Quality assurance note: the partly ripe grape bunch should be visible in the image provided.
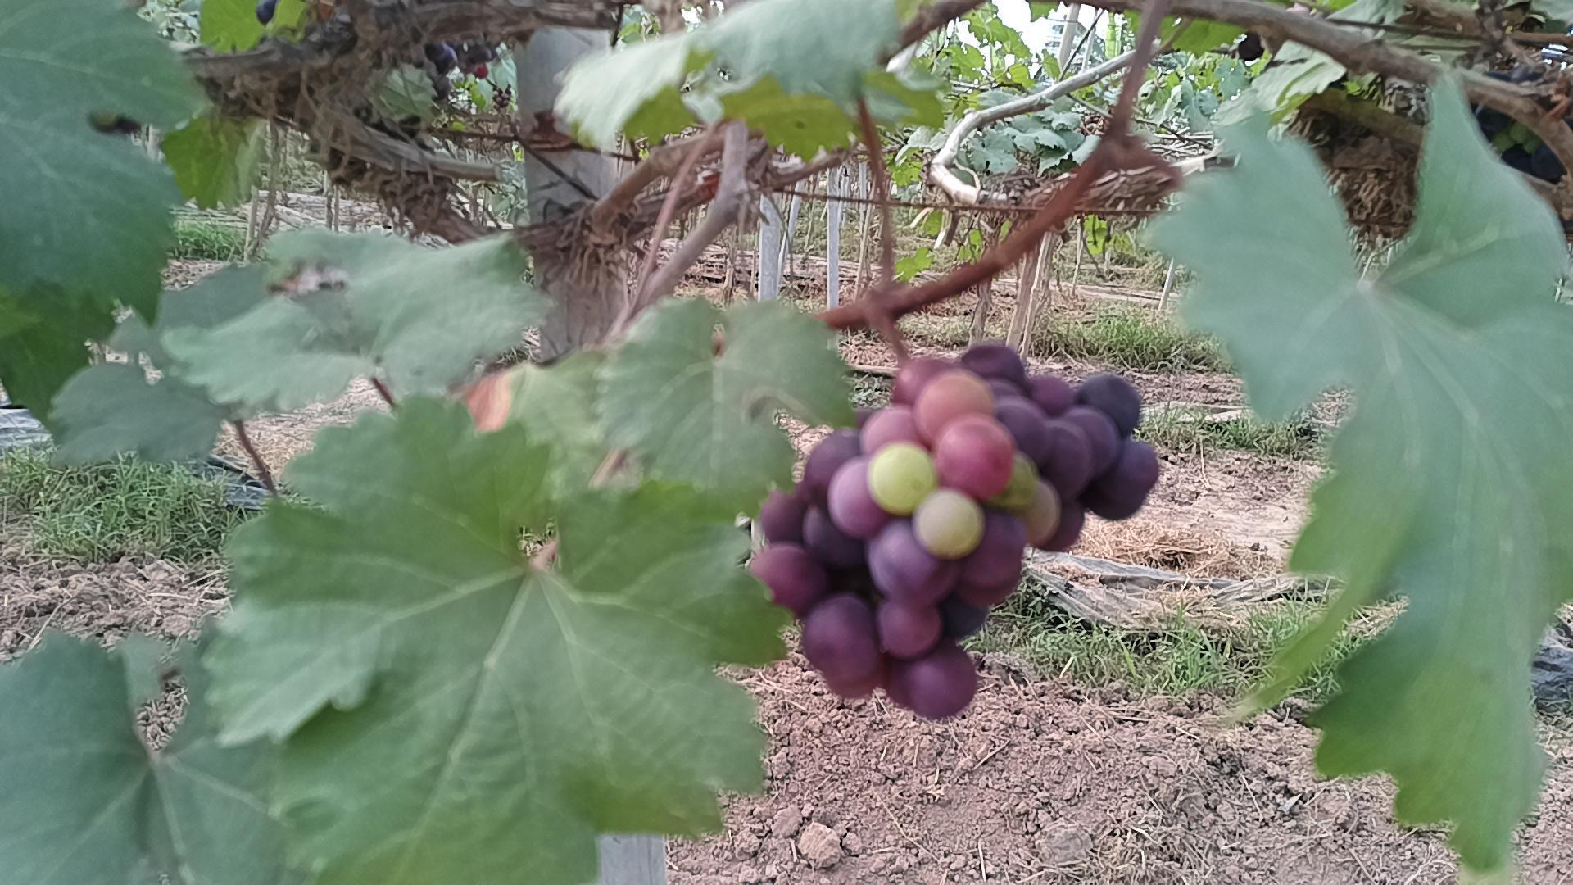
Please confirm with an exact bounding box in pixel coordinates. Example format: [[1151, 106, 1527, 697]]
[[750, 344, 1159, 718]]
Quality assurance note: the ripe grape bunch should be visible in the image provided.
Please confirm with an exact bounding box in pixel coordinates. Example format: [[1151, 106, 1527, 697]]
[[424, 43, 497, 99]]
